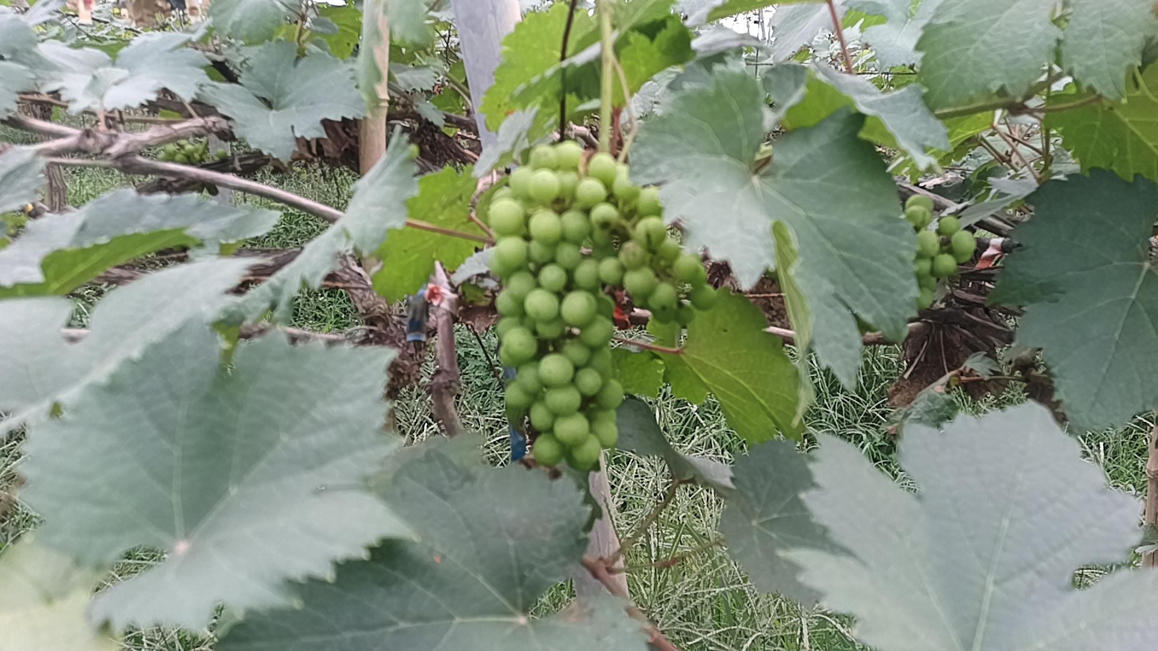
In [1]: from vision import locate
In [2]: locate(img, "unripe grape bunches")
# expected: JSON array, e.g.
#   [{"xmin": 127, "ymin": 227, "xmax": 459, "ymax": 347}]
[
  {"xmin": 156, "ymin": 137, "xmax": 227, "ymax": 165},
  {"xmin": 904, "ymin": 193, "xmax": 976, "ymax": 310},
  {"xmin": 489, "ymin": 142, "xmax": 719, "ymax": 470}
]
